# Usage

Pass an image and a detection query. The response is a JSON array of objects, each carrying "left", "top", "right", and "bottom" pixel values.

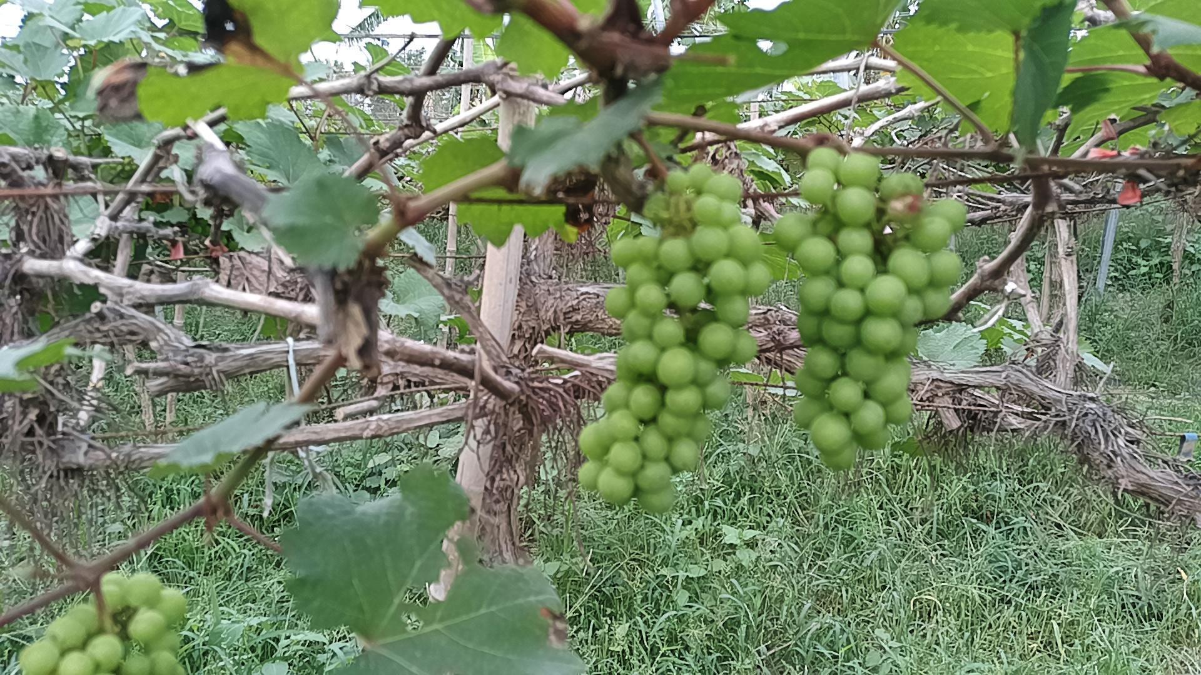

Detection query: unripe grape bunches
[
  {"left": 577, "top": 164, "right": 771, "bottom": 512},
  {"left": 19, "top": 572, "right": 186, "bottom": 674},
  {"left": 775, "top": 146, "right": 965, "bottom": 469},
  {"left": 101, "top": 155, "right": 139, "bottom": 183}
]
